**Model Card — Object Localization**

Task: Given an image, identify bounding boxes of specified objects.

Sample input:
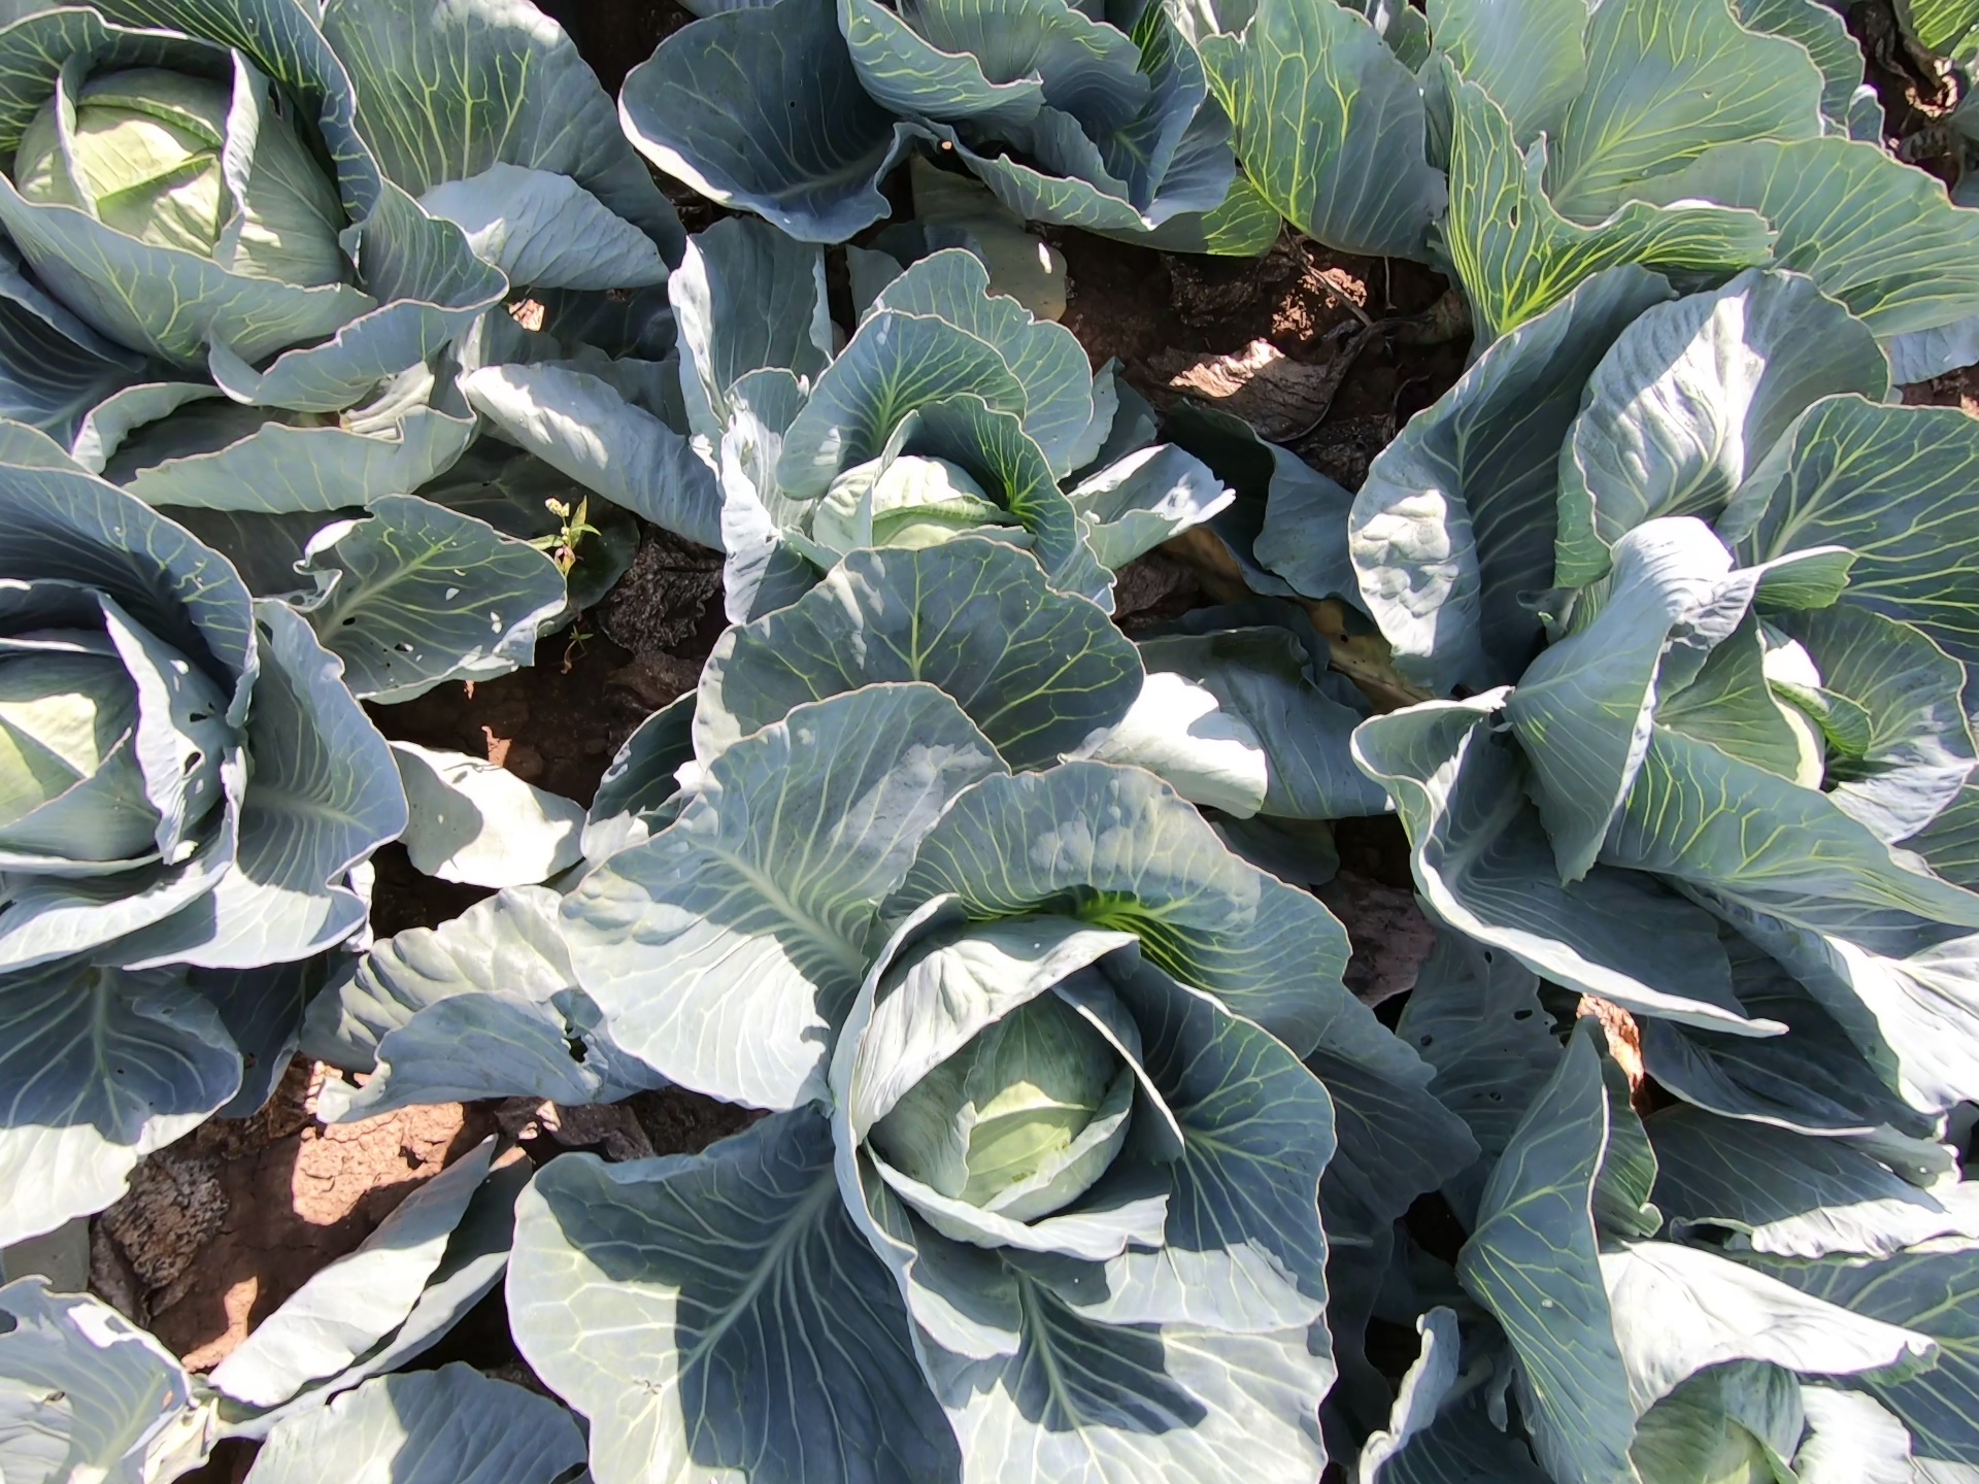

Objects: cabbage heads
[2,628,227,862]
[8,67,346,348]
[863,926,1131,1227]
[819,451,1003,605]
[1636,611,1830,827]
[1581,1271,1804,1478]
